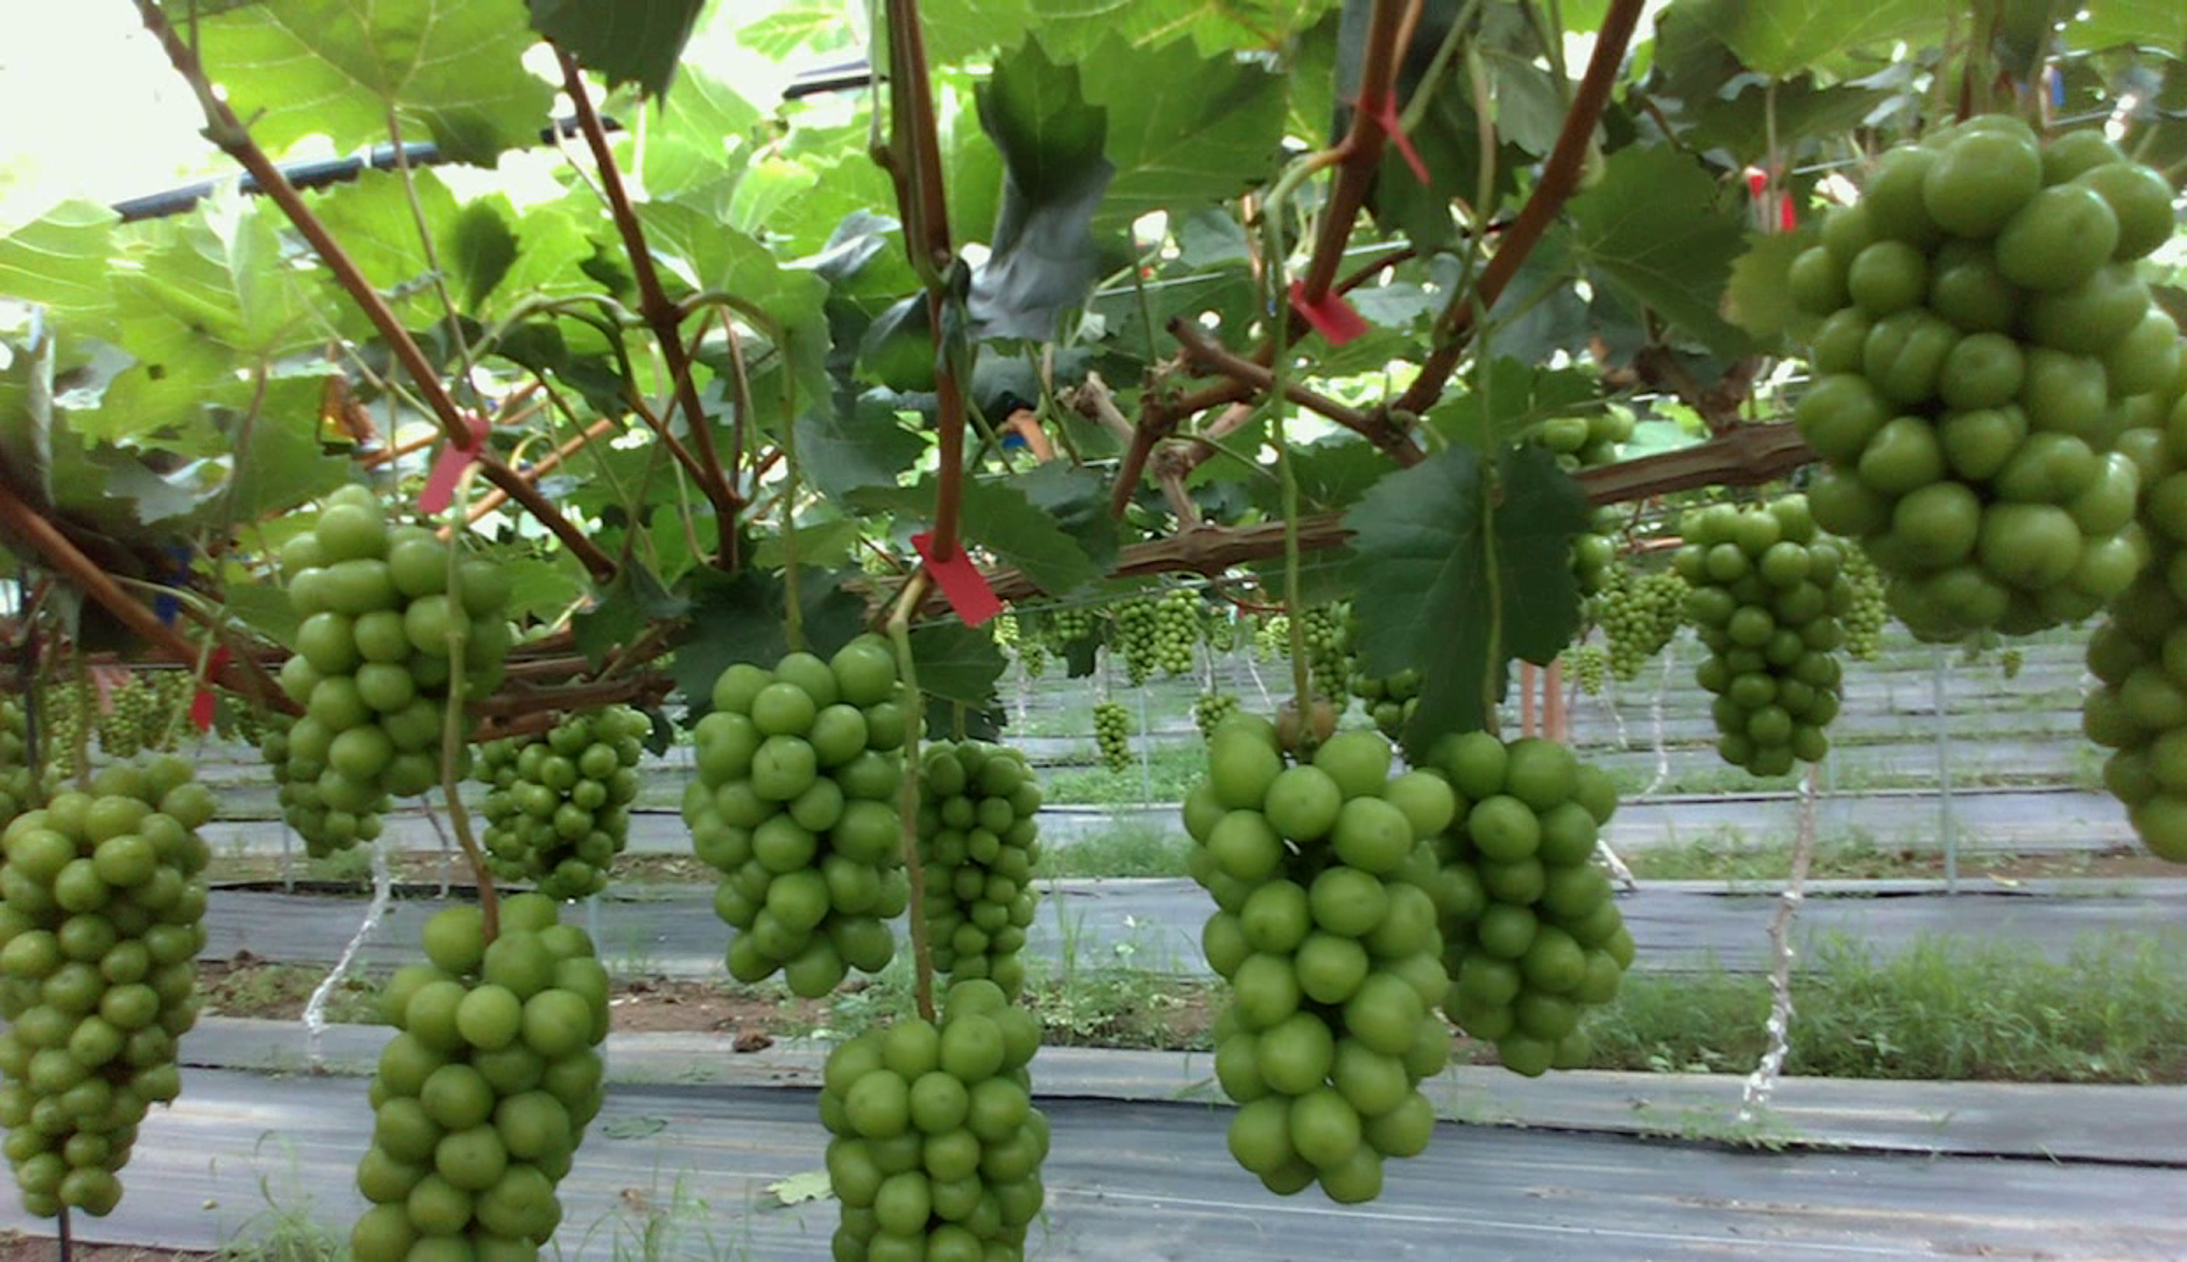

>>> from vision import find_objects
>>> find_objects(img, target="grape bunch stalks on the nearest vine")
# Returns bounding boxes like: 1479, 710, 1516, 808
676, 289, 803, 652
1968, 2, 1998, 117
887, 571, 938, 1025
1463, 282, 1502, 738
389, 391, 401, 524
1263, 140, 1355, 764
70, 643, 89, 792
442, 459, 499, 946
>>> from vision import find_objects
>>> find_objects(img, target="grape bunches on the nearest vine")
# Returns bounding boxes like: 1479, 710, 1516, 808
279, 482, 512, 815
1782, 114, 2182, 645
817, 982, 1053, 1260
1418, 731, 1637, 1078
1181, 696, 1456, 1206
349, 892, 612, 1260
678, 631, 909, 999
0, 752, 219, 1220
